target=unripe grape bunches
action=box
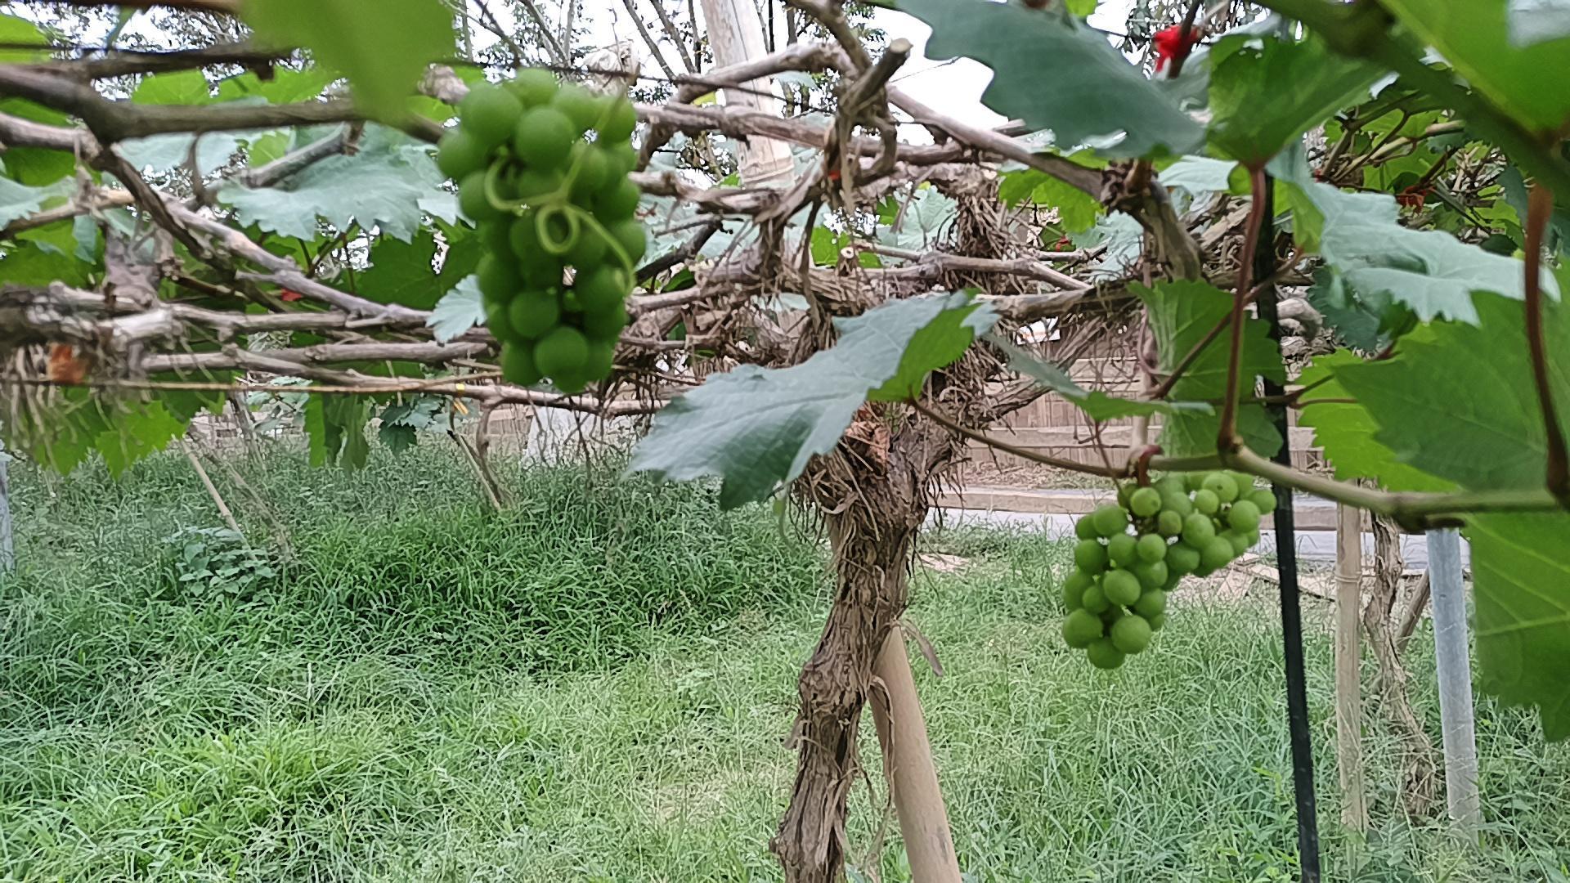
[1061,471,1276,668]
[438,69,648,392]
